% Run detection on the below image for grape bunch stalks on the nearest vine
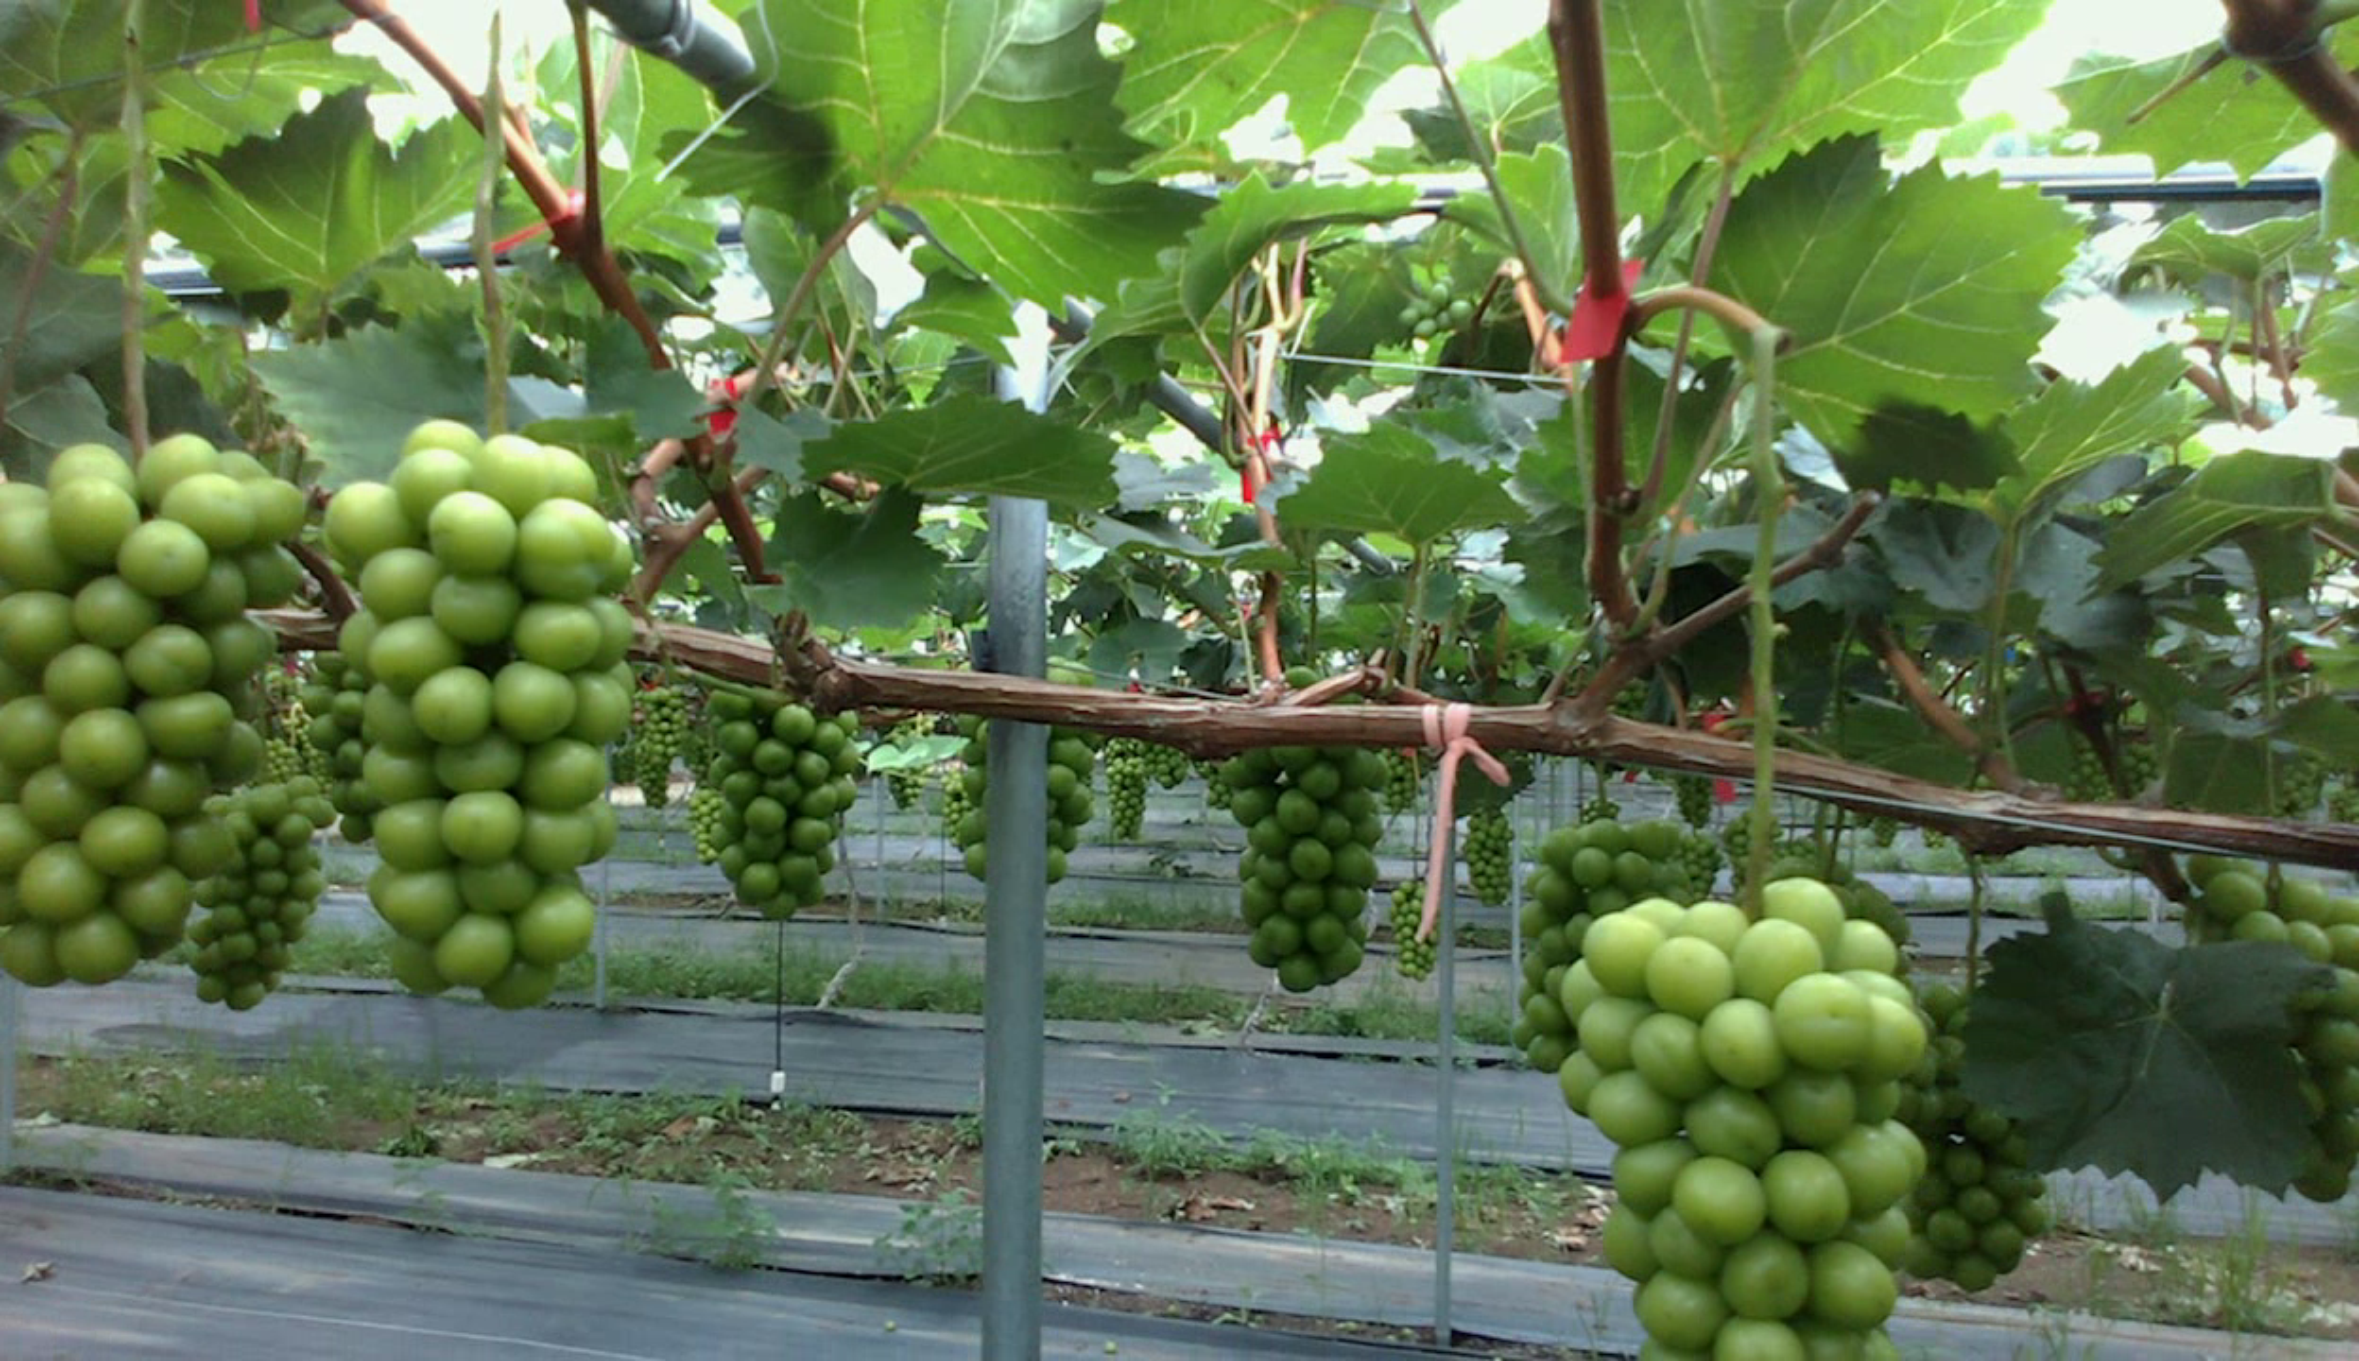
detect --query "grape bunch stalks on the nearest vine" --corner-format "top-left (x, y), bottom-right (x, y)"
top-left (121, 2), bottom-right (146, 461)
top-left (473, 9), bottom-right (507, 437)
top-left (1635, 287), bottom-right (1781, 926)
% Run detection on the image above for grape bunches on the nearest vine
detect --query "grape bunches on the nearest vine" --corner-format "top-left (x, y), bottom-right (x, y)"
top-left (325, 418), bottom-right (635, 1008)
top-left (0, 429), bottom-right (310, 987)
top-left (1558, 877), bottom-right (1928, 1359)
